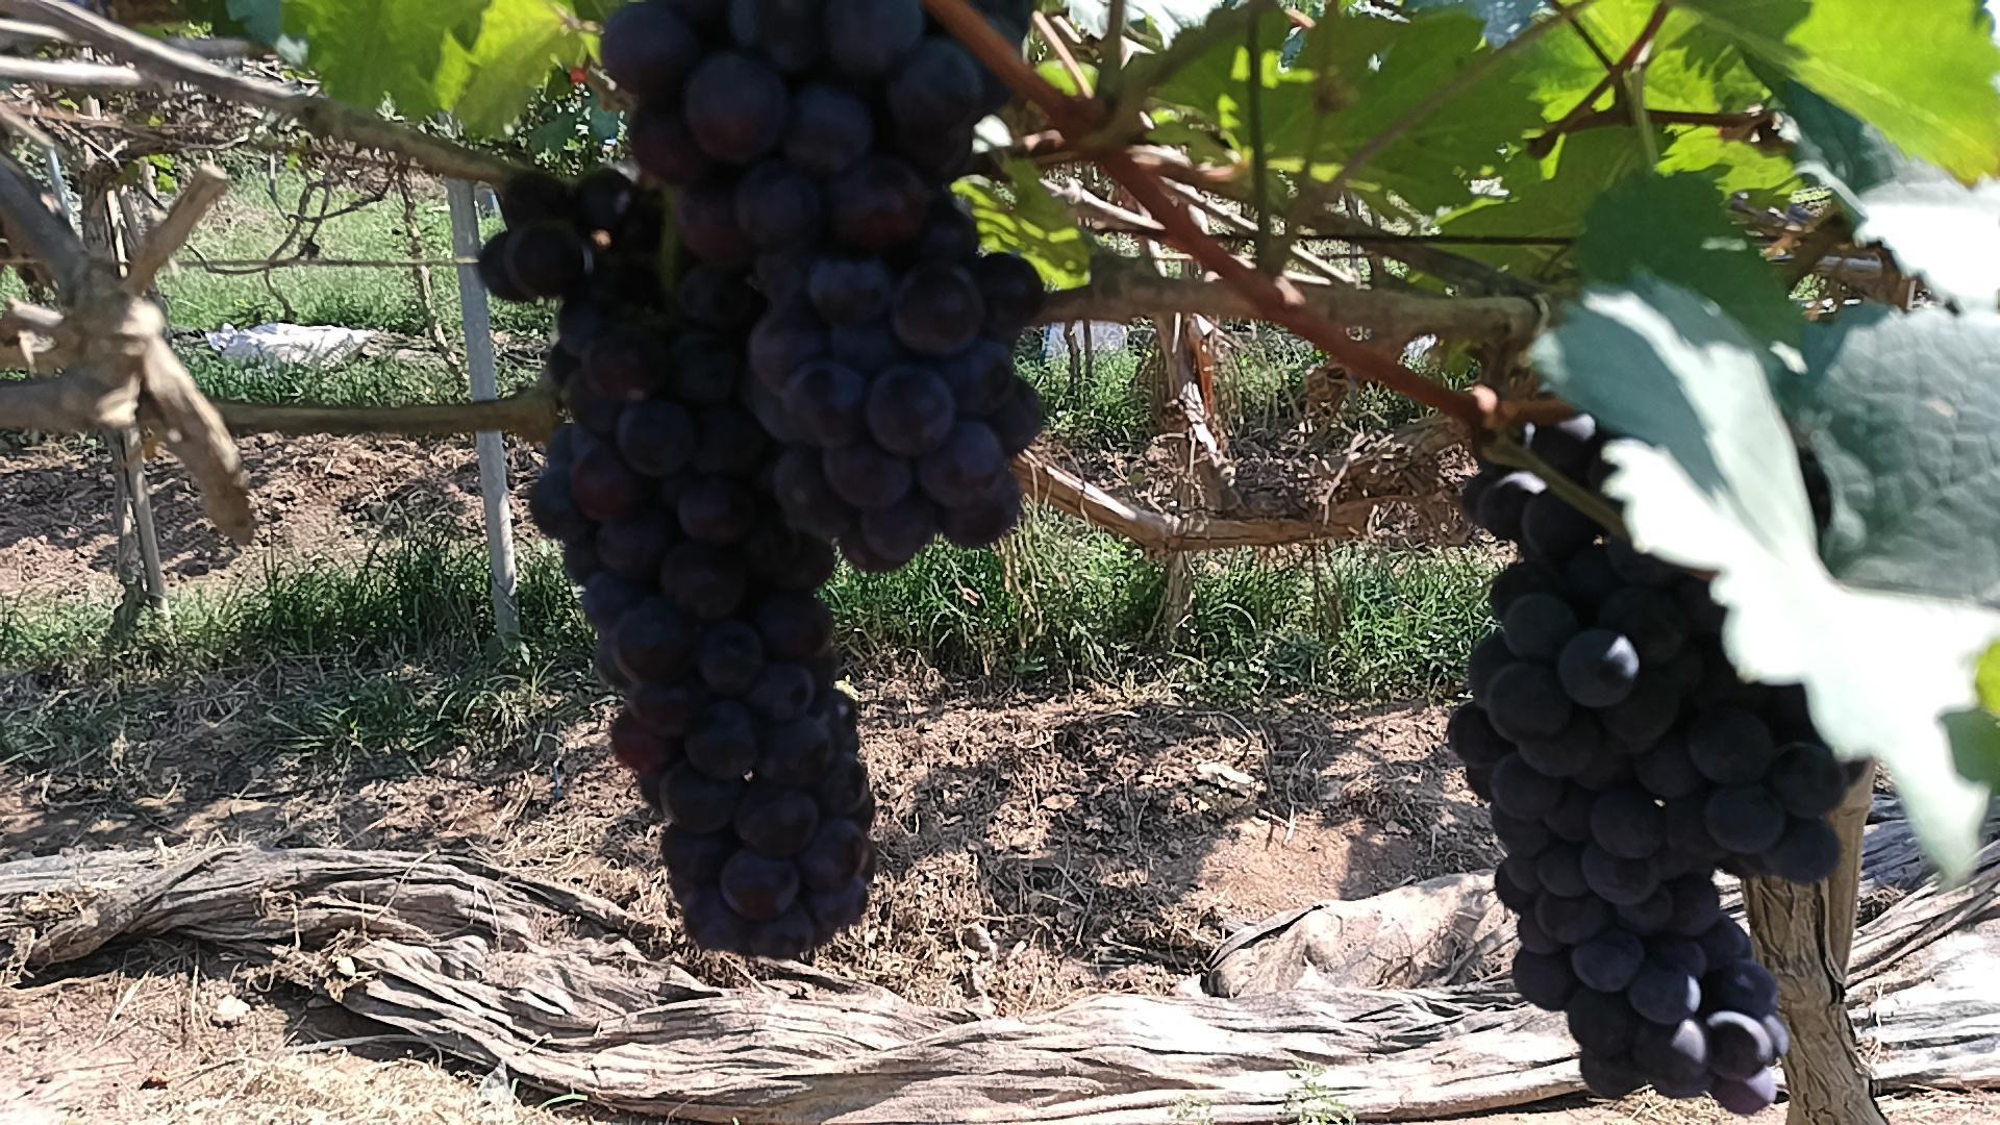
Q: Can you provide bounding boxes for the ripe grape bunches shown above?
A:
[478,168,878,957]
[1451,411,1871,1118]
[600,0,1046,574]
